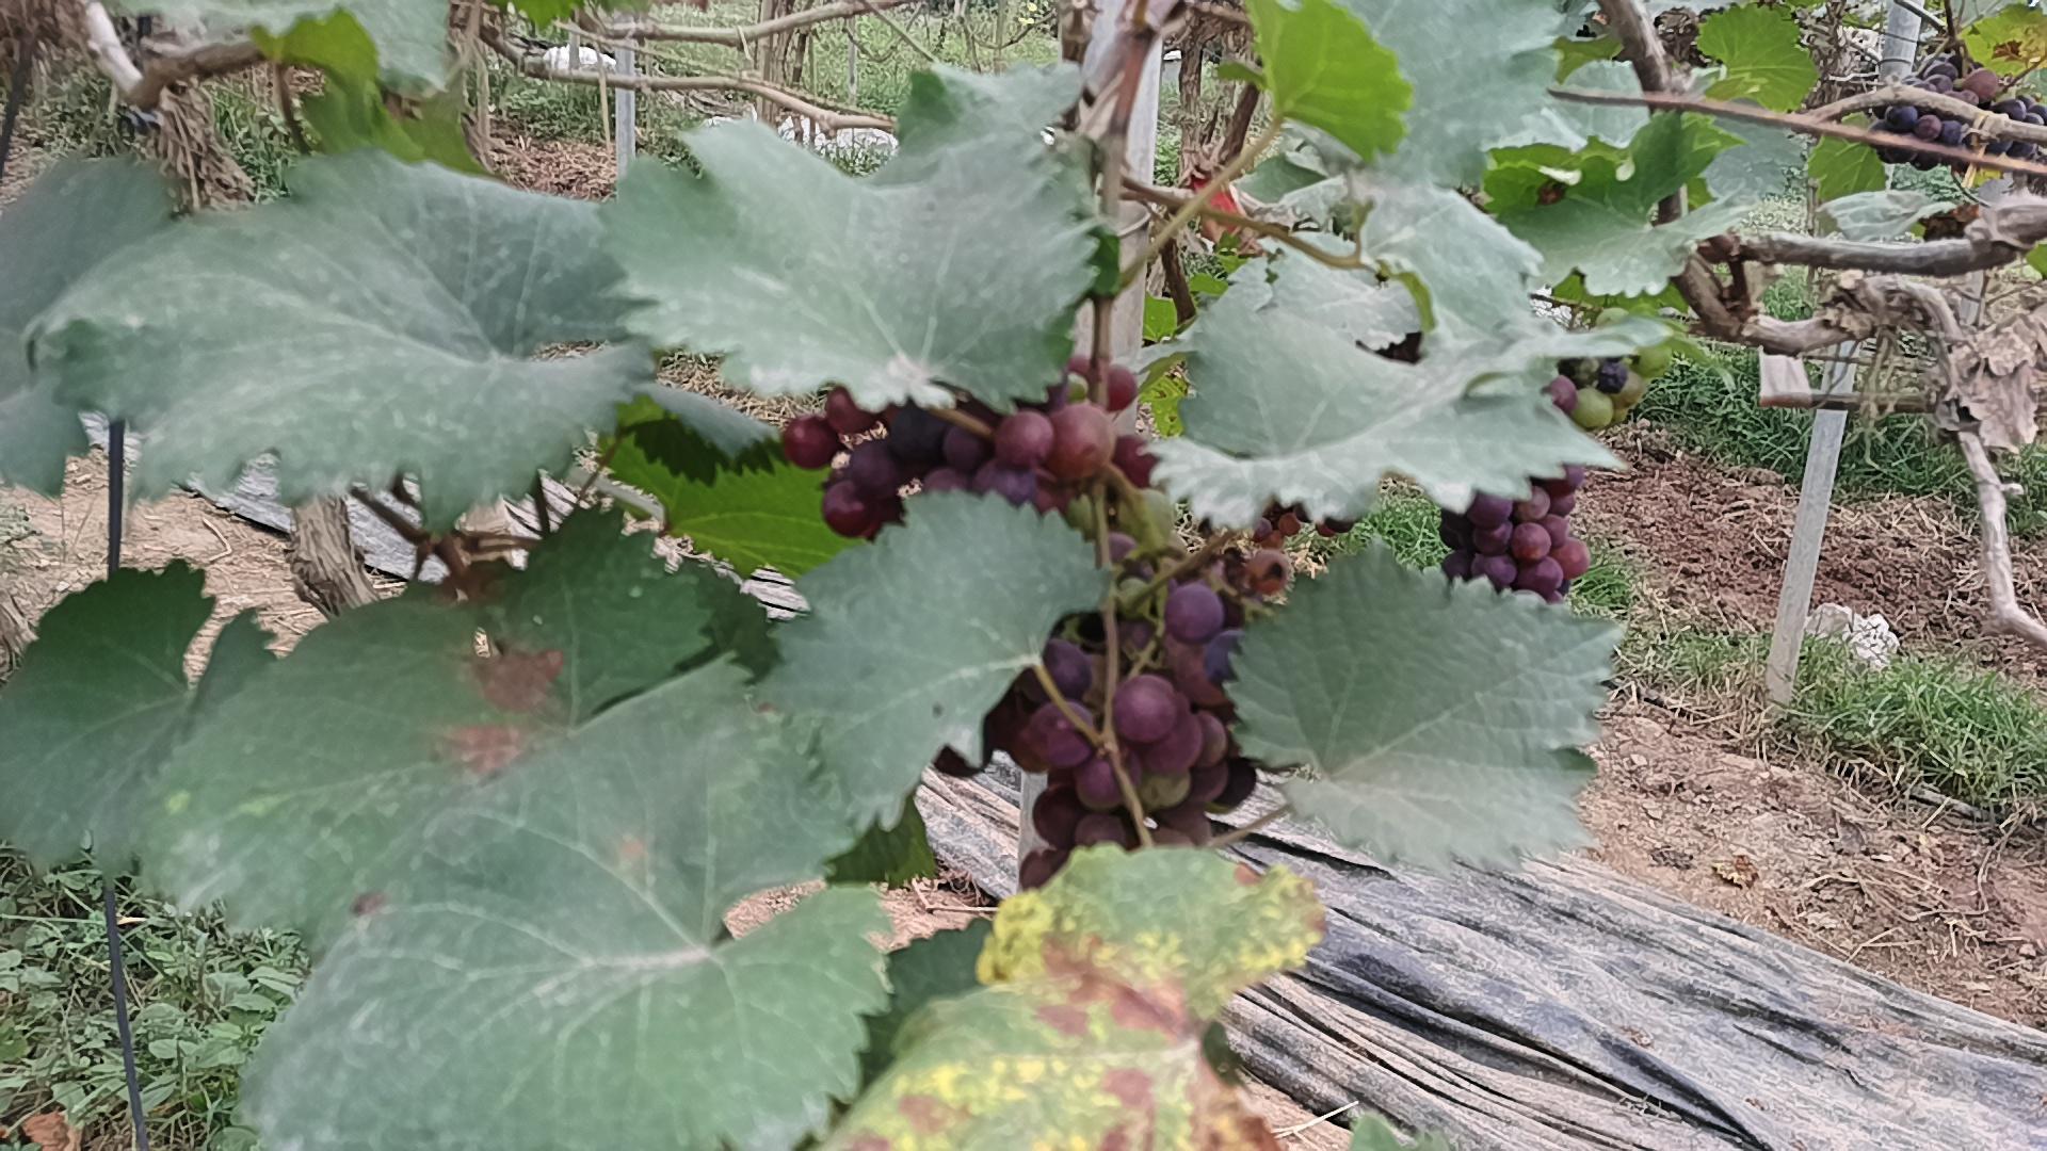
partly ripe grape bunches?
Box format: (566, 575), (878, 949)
(783, 358), (1289, 888)
(1440, 309), (1676, 601)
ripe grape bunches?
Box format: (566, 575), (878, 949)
(1252, 504), (1354, 548)
(1868, 54), (2046, 175)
